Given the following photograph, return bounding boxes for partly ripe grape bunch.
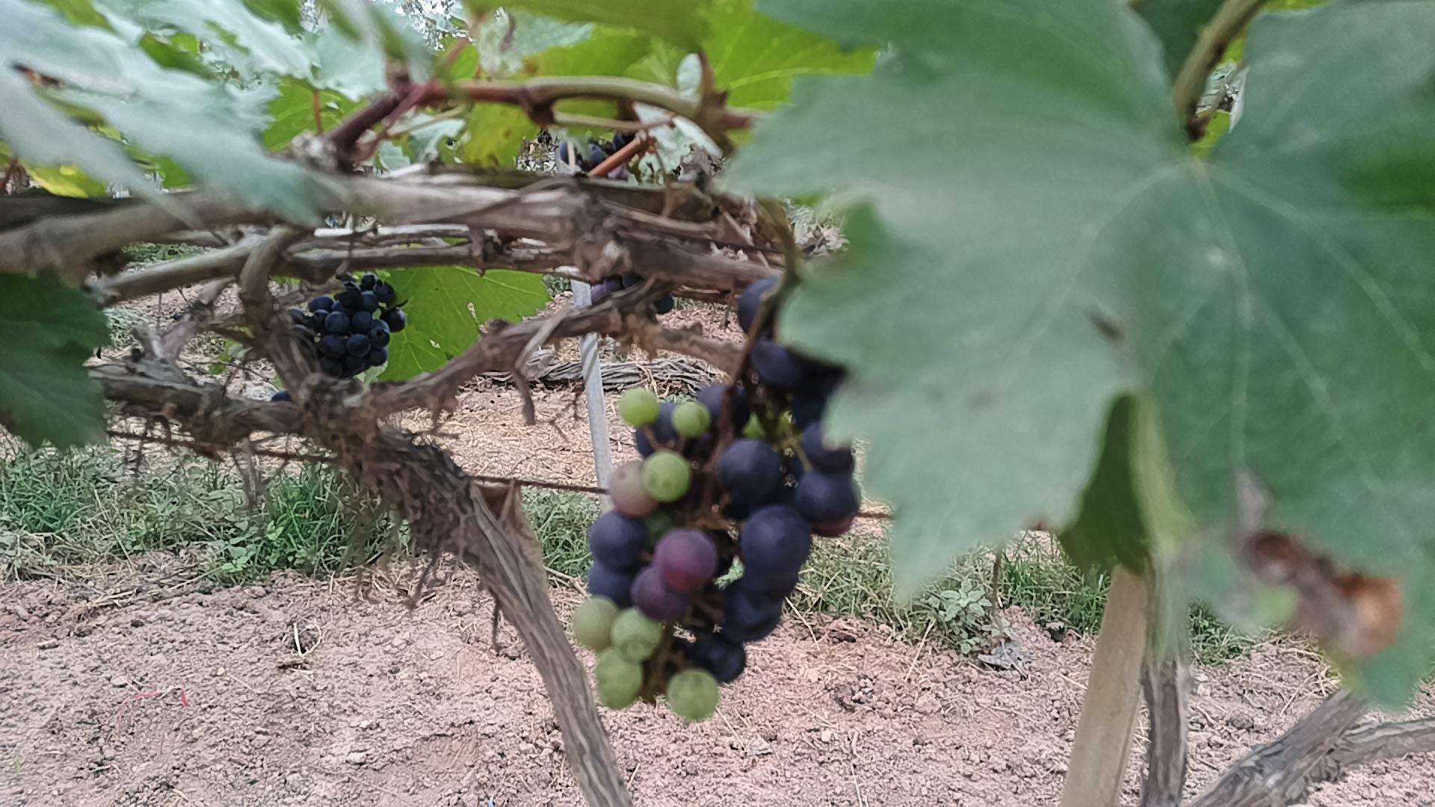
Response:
[574,275,861,719]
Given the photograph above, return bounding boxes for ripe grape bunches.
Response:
[558,130,675,315]
[289,269,406,377]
